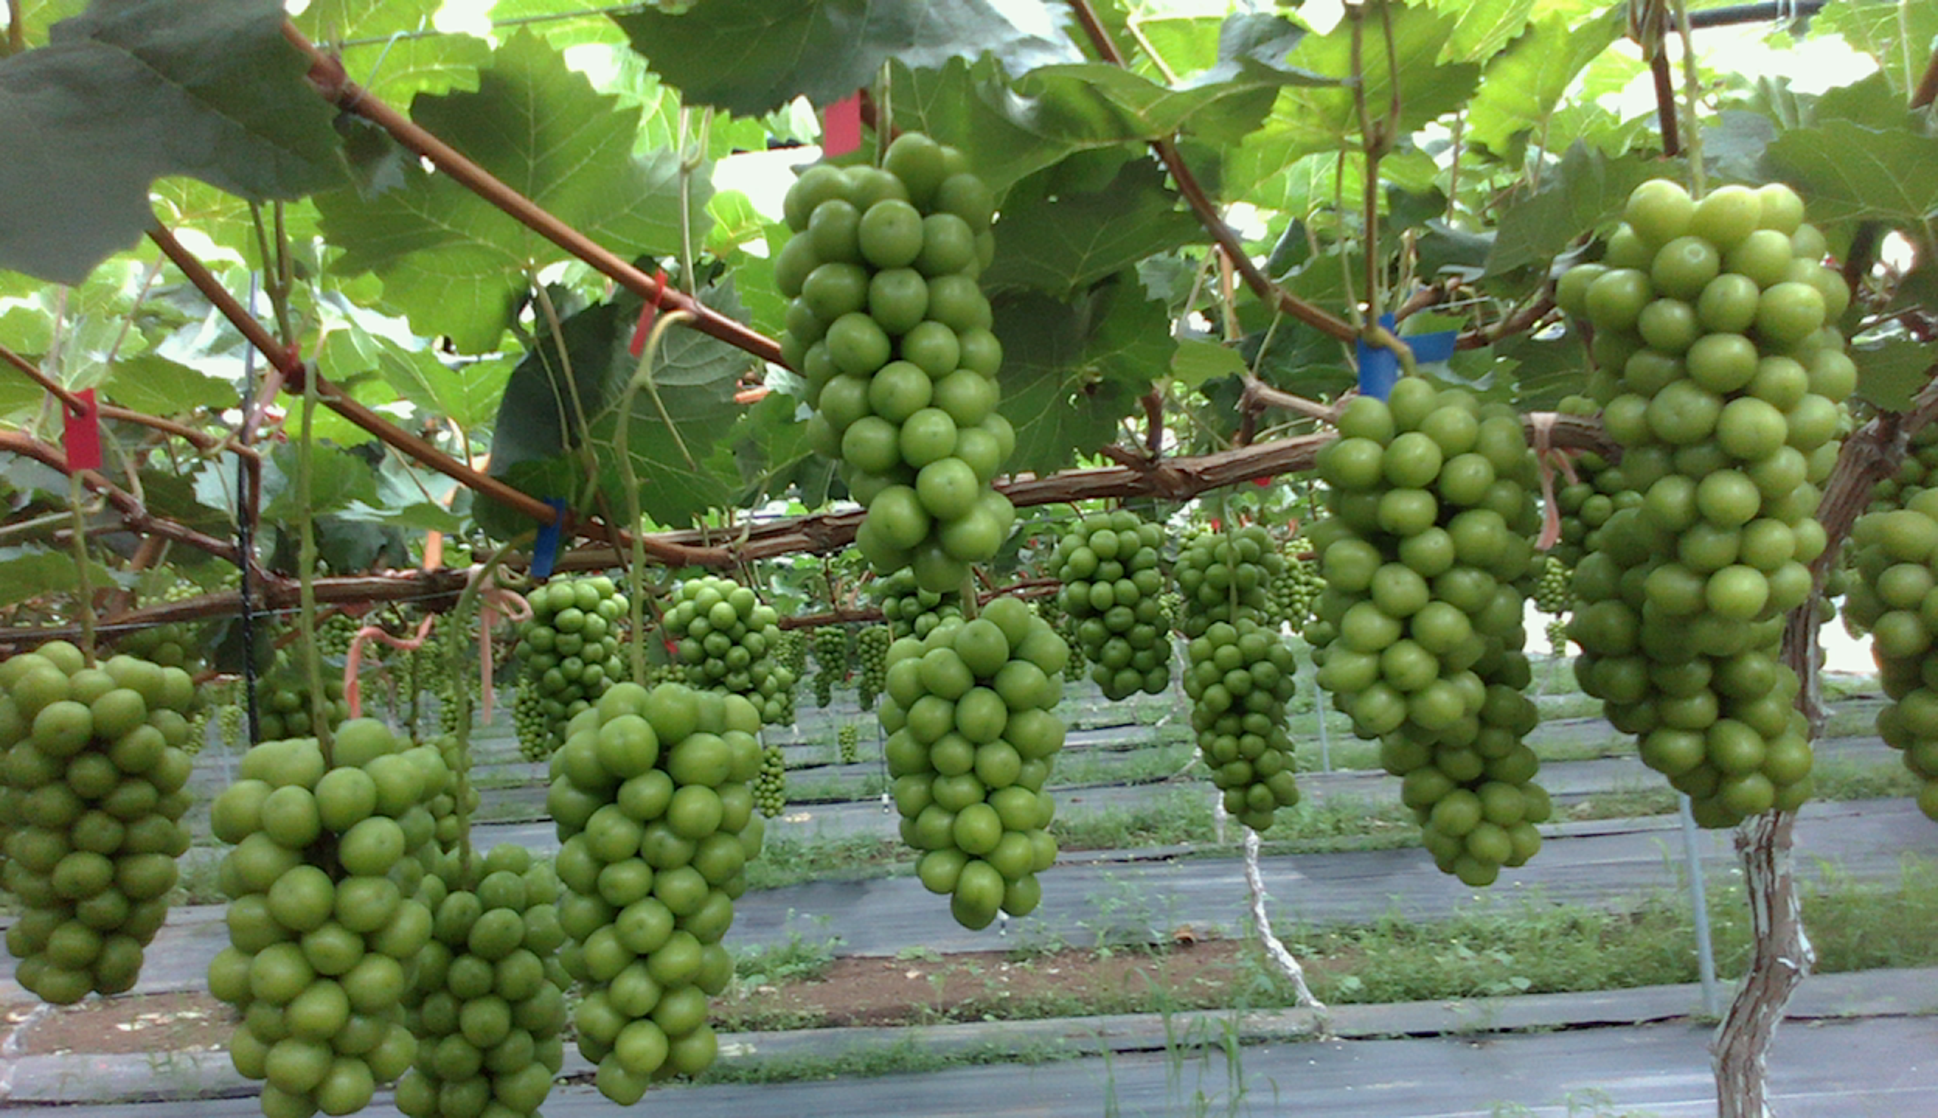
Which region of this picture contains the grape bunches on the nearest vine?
[205,717,450,1116]
[879,595,1067,932]
[1848,488,1936,820]
[393,845,568,1116]
[548,680,764,1107]
[1309,377,1533,736]
[1567,505,1815,828]
[1553,179,1862,620]
[773,130,1017,593]
[0,640,191,1003]
[1379,624,1553,887]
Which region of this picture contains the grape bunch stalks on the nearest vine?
[615,309,699,688]
[298,359,332,772]
[876,61,891,166]
[960,567,977,620]
[1376,329,1418,379]
[1674,0,1705,199]
[449,526,534,890]
[70,469,95,665]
